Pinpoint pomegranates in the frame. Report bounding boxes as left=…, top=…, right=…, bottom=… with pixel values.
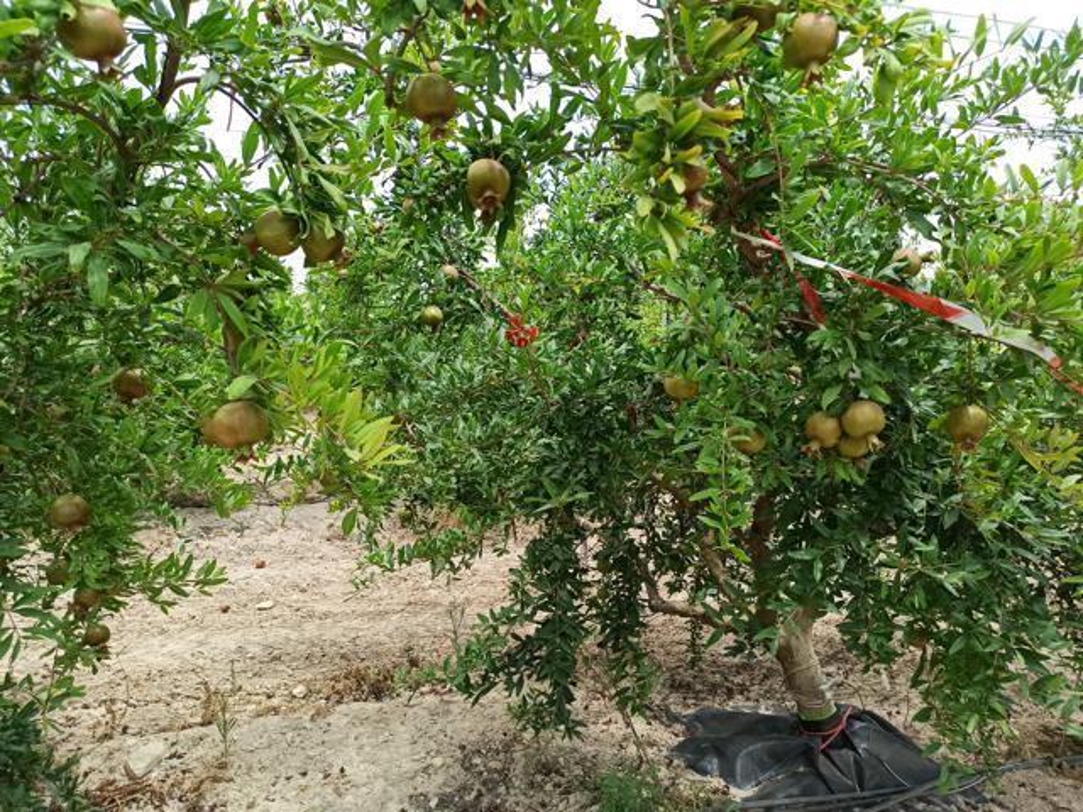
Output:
left=206, top=401, right=271, bottom=462
left=839, top=399, right=887, bottom=453
left=892, top=247, right=934, bottom=276
left=421, top=304, right=445, bottom=325
left=404, top=74, right=459, bottom=142
left=56, top=7, right=127, bottom=76
left=834, top=433, right=870, bottom=469
left=46, top=558, right=71, bottom=585
left=680, top=171, right=714, bottom=213
left=467, top=159, right=511, bottom=211
left=242, top=208, right=300, bottom=255
left=948, top=403, right=988, bottom=453
left=800, top=411, right=843, bottom=458
left=113, top=367, right=147, bottom=409
left=303, top=230, right=352, bottom=269
left=69, top=587, right=102, bottom=617
left=86, top=626, right=112, bottom=651
left=783, top=10, right=839, bottom=88
left=51, top=492, right=90, bottom=533
left=733, top=430, right=765, bottom=453
left=663, top=377, right=699, bottom=399
left=440, top=264, right=460, bottom=284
